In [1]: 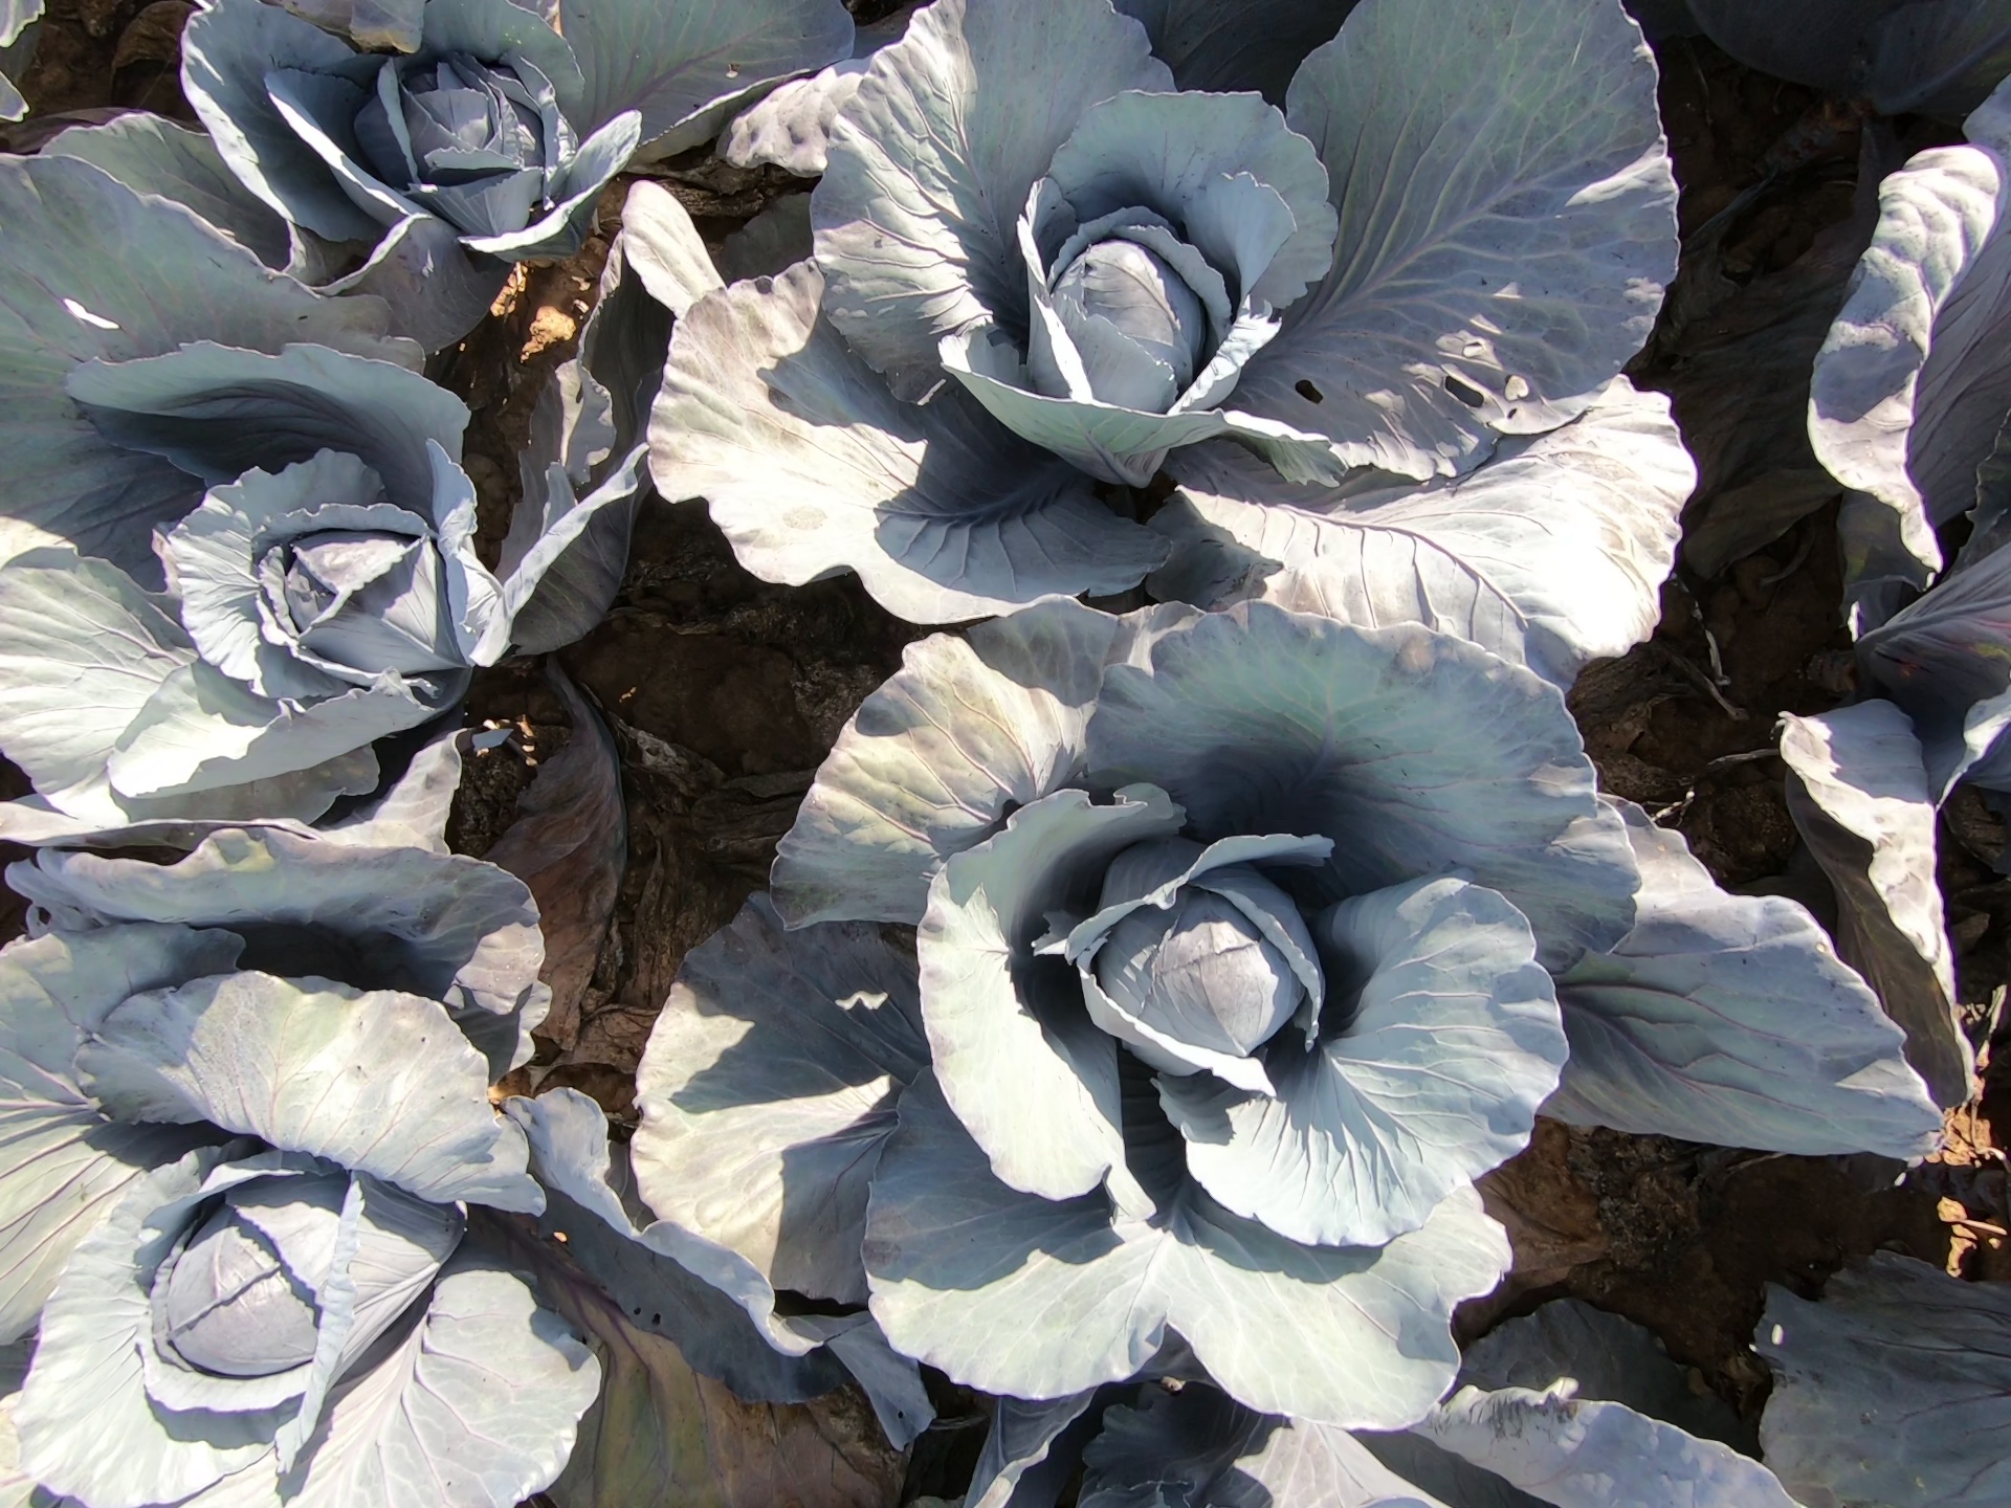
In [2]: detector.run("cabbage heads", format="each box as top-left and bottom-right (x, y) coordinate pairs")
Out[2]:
(281, 523), (458, 673)
(395, 72), (542, 199)
(162, 1176), (400, 1378)
(1042, 238), (1200, 420)
(1109, 861), (1304, 1064)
